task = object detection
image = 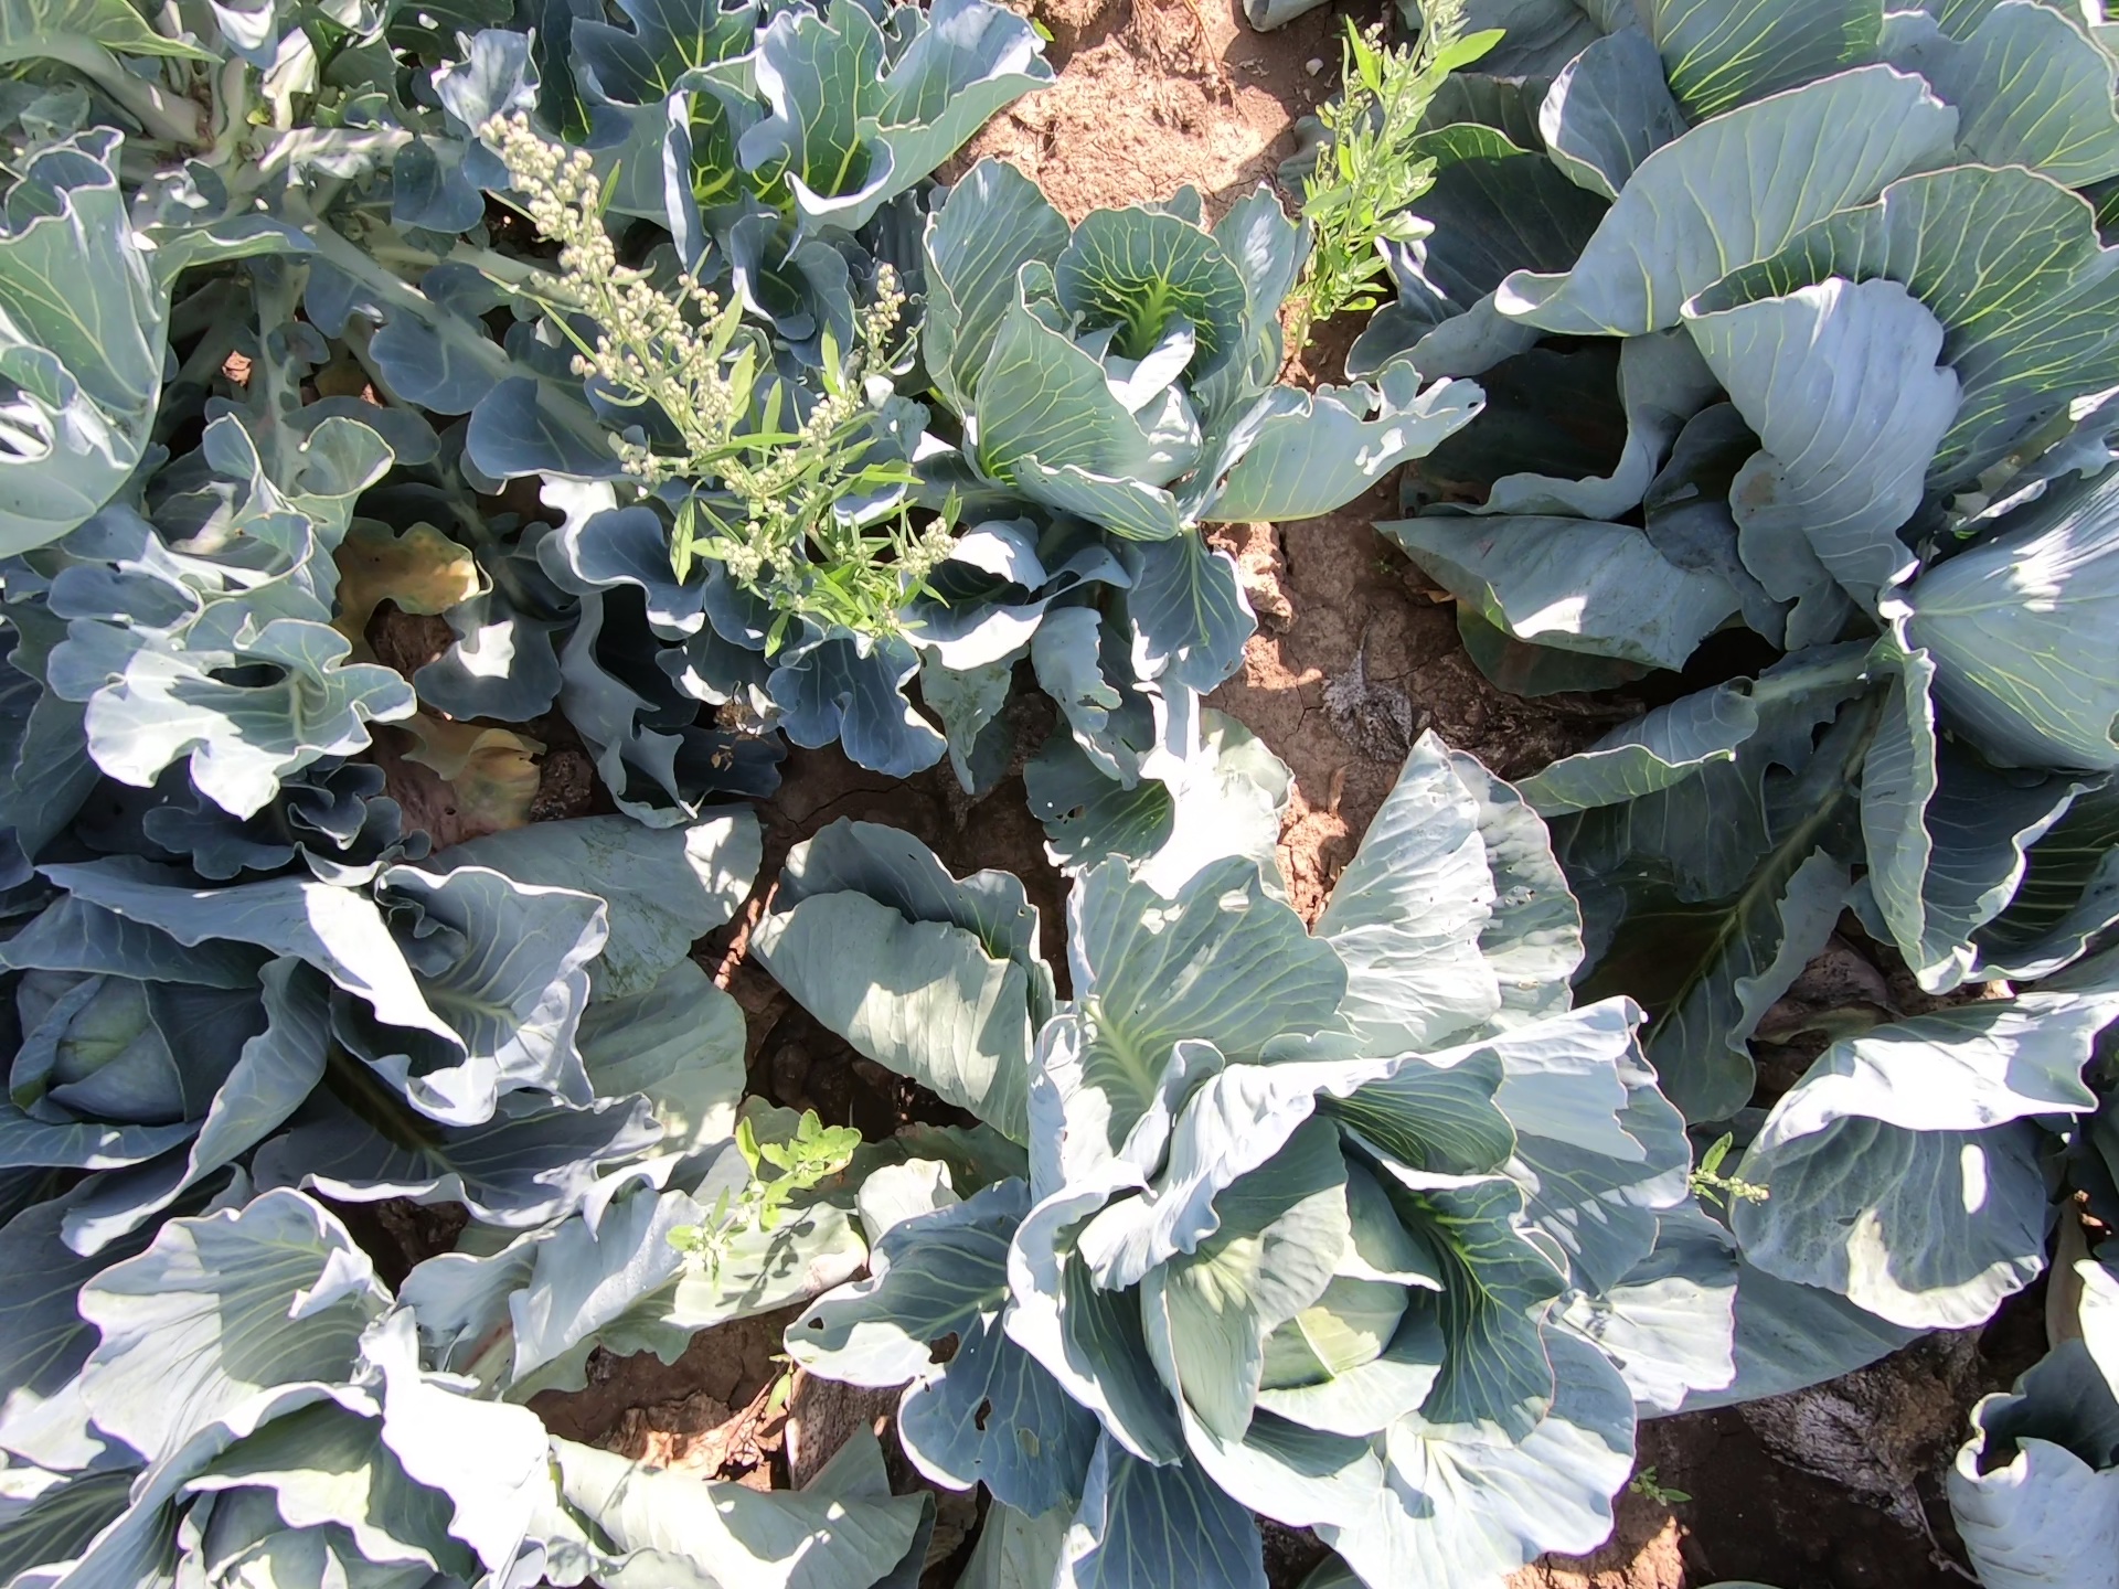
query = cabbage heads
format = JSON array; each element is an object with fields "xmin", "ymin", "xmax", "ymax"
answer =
[
  {"xmin": 182, "ymin": 1419, "xmax": 458, "ymax": 1587},
  {"xmin": 1183, "ymin": 1145, "xmax": 1416, "ymax": 1389},
  {"xmin": 20, "ymin": 900, "xmax": 278, "ymax": 1122},
  {"xmin": 1042, "ymin": 356, "xmax": 1184, "ymax": 494}
]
